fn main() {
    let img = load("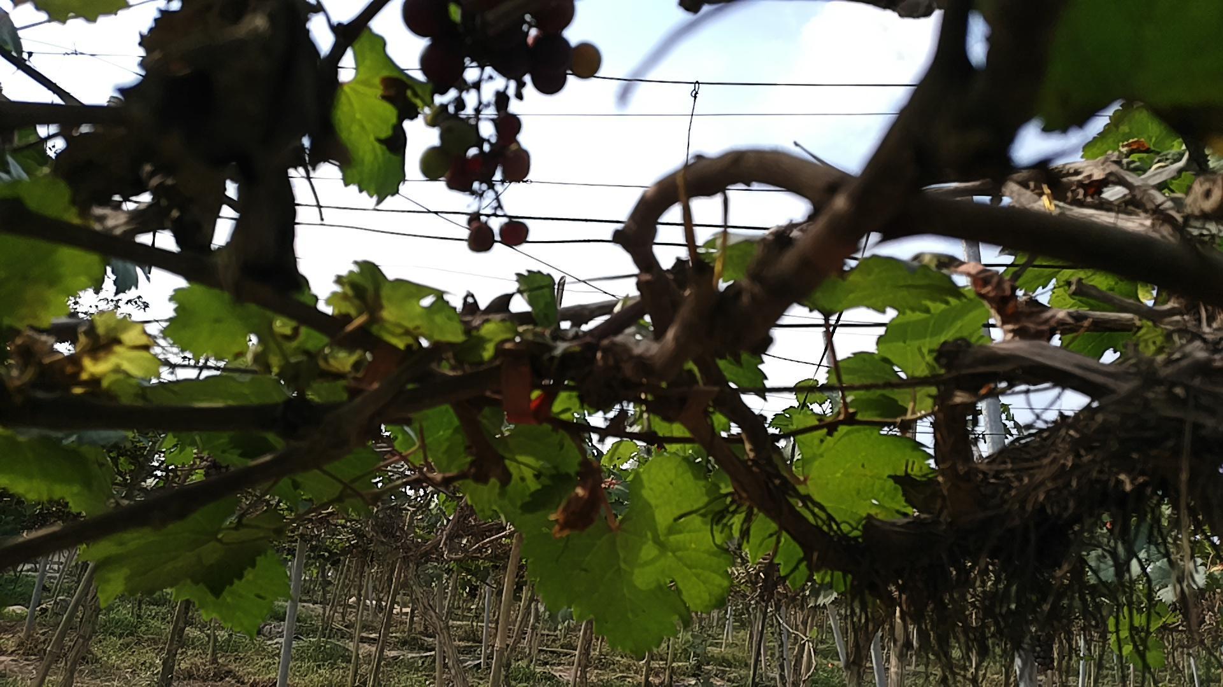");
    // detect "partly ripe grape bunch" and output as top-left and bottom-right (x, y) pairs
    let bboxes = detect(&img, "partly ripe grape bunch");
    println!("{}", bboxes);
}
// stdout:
(403, 0), (599, 253)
